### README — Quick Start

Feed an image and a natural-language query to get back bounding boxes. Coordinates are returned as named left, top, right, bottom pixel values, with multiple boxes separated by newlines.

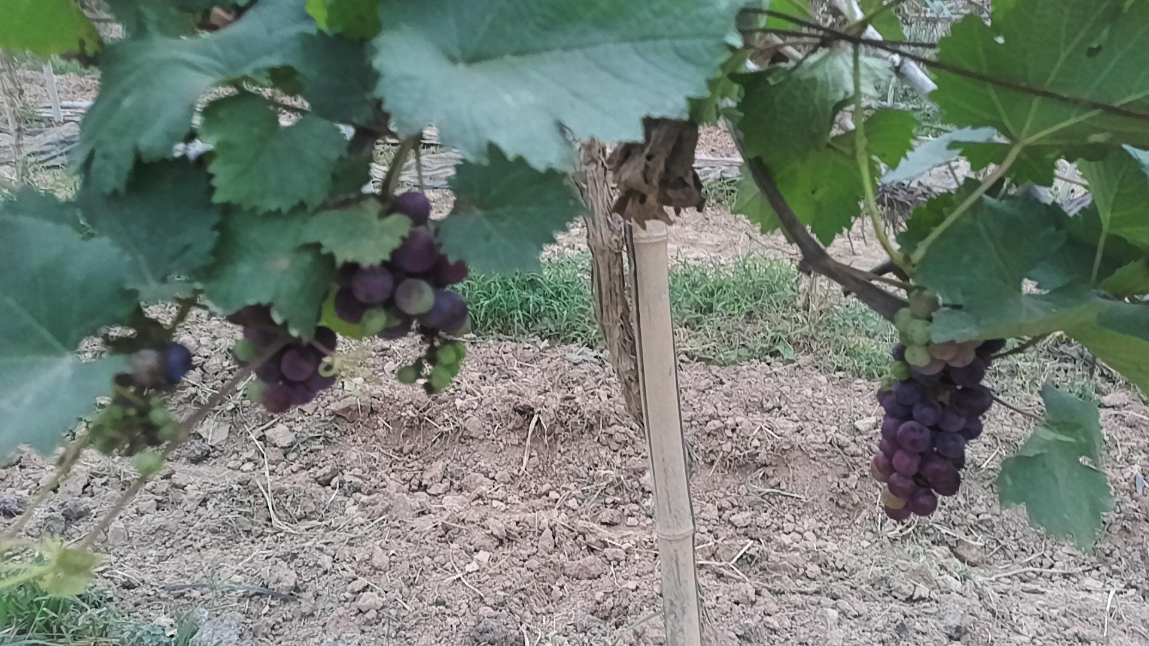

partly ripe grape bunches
left=227, top=306, right=336, bottom=413
left=870, top=289, right=1004, bottom=520
left=102, top=307, right=193, bottom=391
left=324, top=191, right=469, bottom=394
